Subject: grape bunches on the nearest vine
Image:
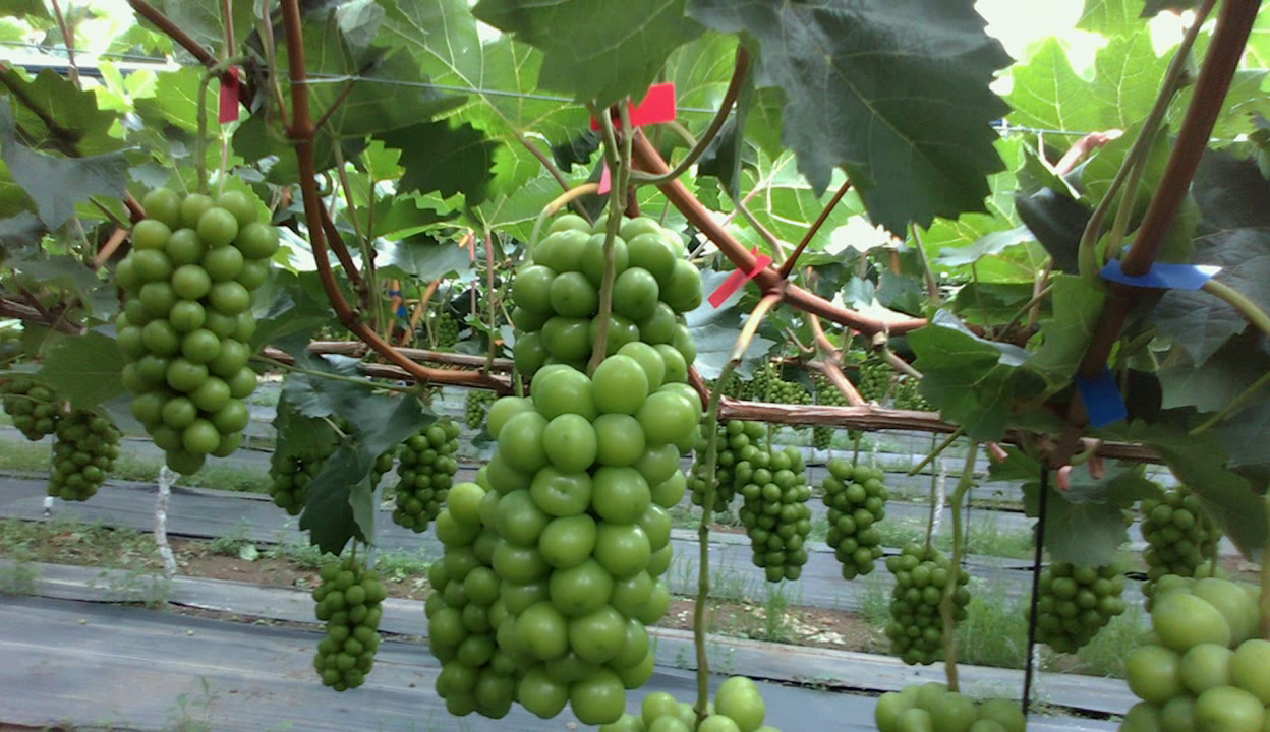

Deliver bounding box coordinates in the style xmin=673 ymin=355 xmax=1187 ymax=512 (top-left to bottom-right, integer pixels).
xmin=423 ymin=467 xmax=525 ymax=719
xmin=115 ymin=187 xmax=280 ymax=475
xmin=598 ymin=677 xmax=778 ymax=731
xmin=1118 ymin=577 xmax=1269 ymax=731
xmin=511 ymin=213 xmax=702 ymax=378
xmin=481 ymin=342 xmax=702 ymax=725
xmin=874 ymin=683 xmax=1026 ymax=731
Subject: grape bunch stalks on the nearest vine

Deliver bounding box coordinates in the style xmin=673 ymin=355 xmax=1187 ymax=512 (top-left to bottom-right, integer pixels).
xmin=939 ymin=443 xmax=979 ymax=696
xmin=587 ymin=110 xmax=621 ymax=378
xmin=195 ymin=55 xmax=249 ymax=196
xmin=694 ymin=296 xmax=777 ymax=729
